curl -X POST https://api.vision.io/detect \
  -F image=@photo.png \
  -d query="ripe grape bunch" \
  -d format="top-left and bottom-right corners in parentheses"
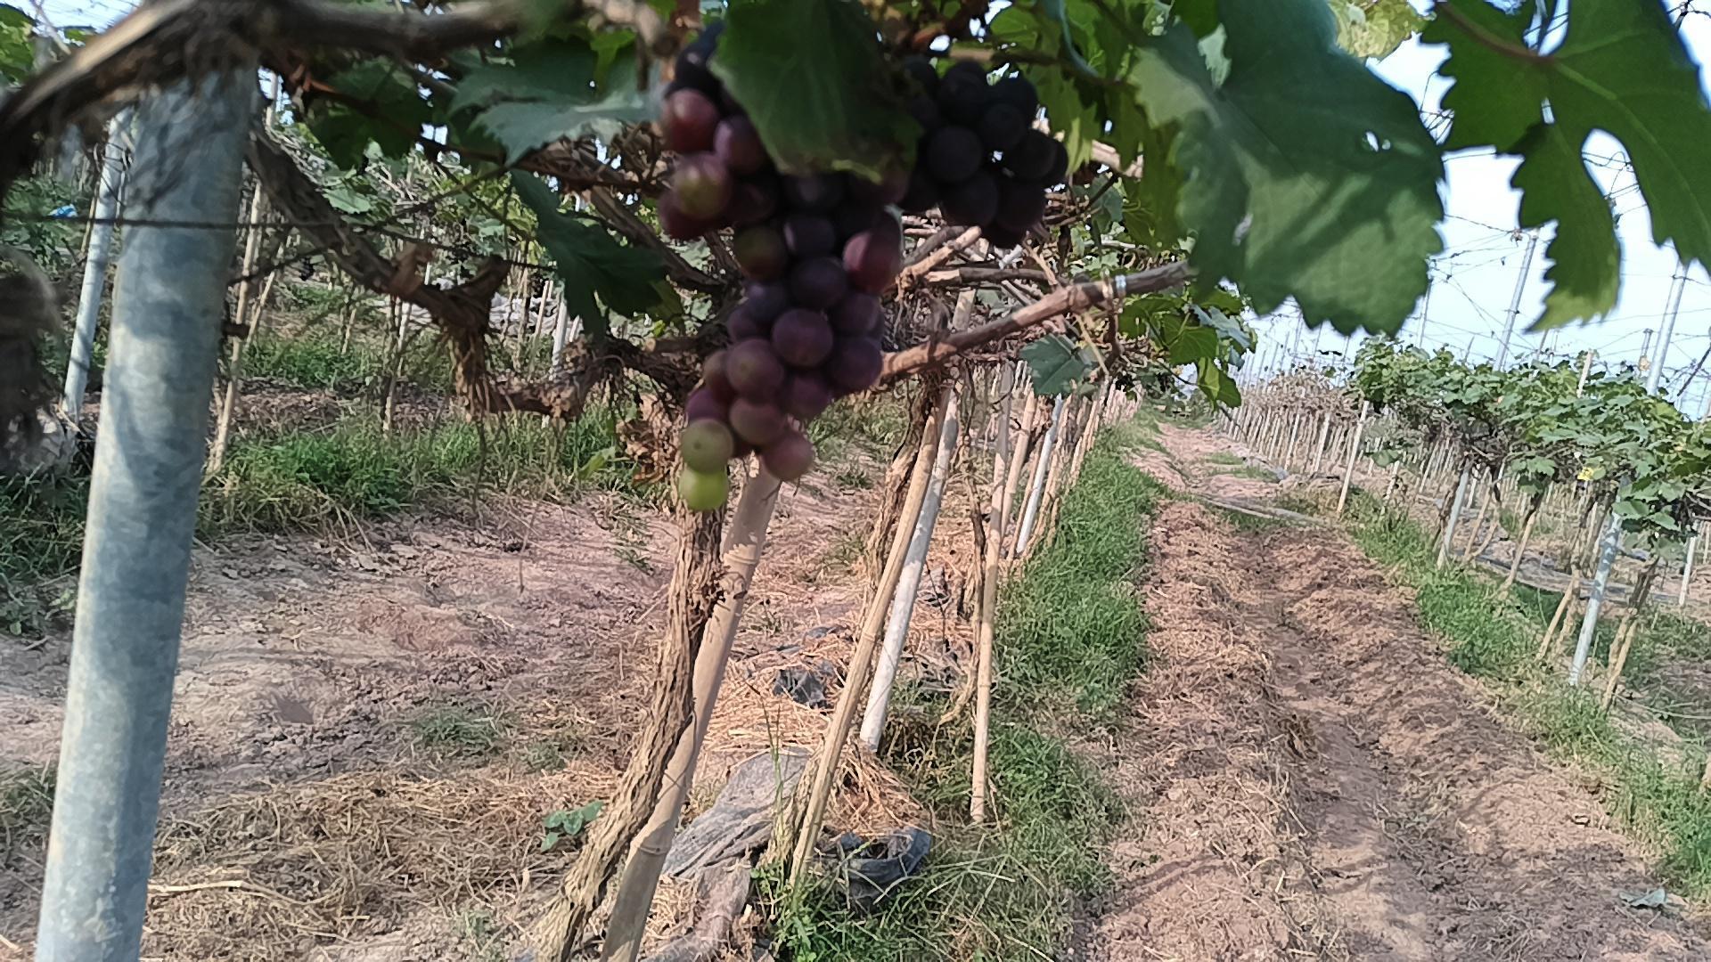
top-left (899, 58), bottom-right (1068, 249)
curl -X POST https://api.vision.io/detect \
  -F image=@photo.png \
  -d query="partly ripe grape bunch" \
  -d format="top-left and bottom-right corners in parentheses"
top-left (659, 21), bottom-right (906, 516)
